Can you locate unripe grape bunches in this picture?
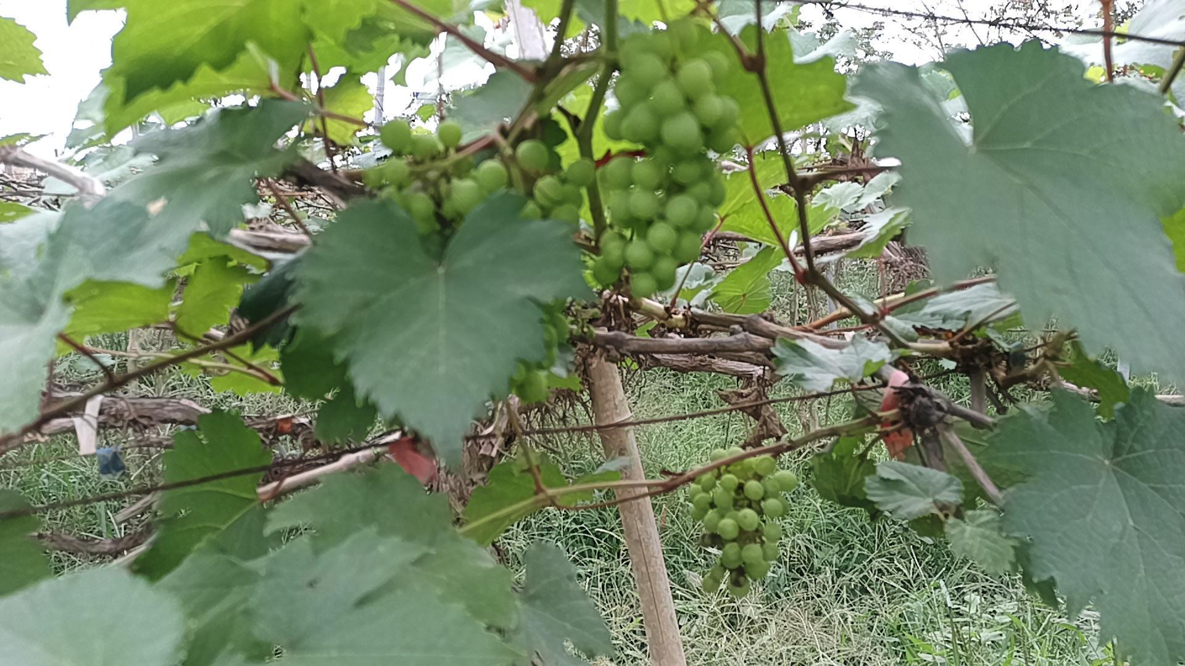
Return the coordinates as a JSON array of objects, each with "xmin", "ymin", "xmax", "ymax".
[
  {"xmin": 593, "ymin": 19, "xmax": 739, "ymax": 295},
  {"xmin": 689, "ymin": 447, "xmax": 797, "ymax": 596},
  {"xmin": 364, "ymin": 117, "xmax": 594, "ymax": 237}
]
